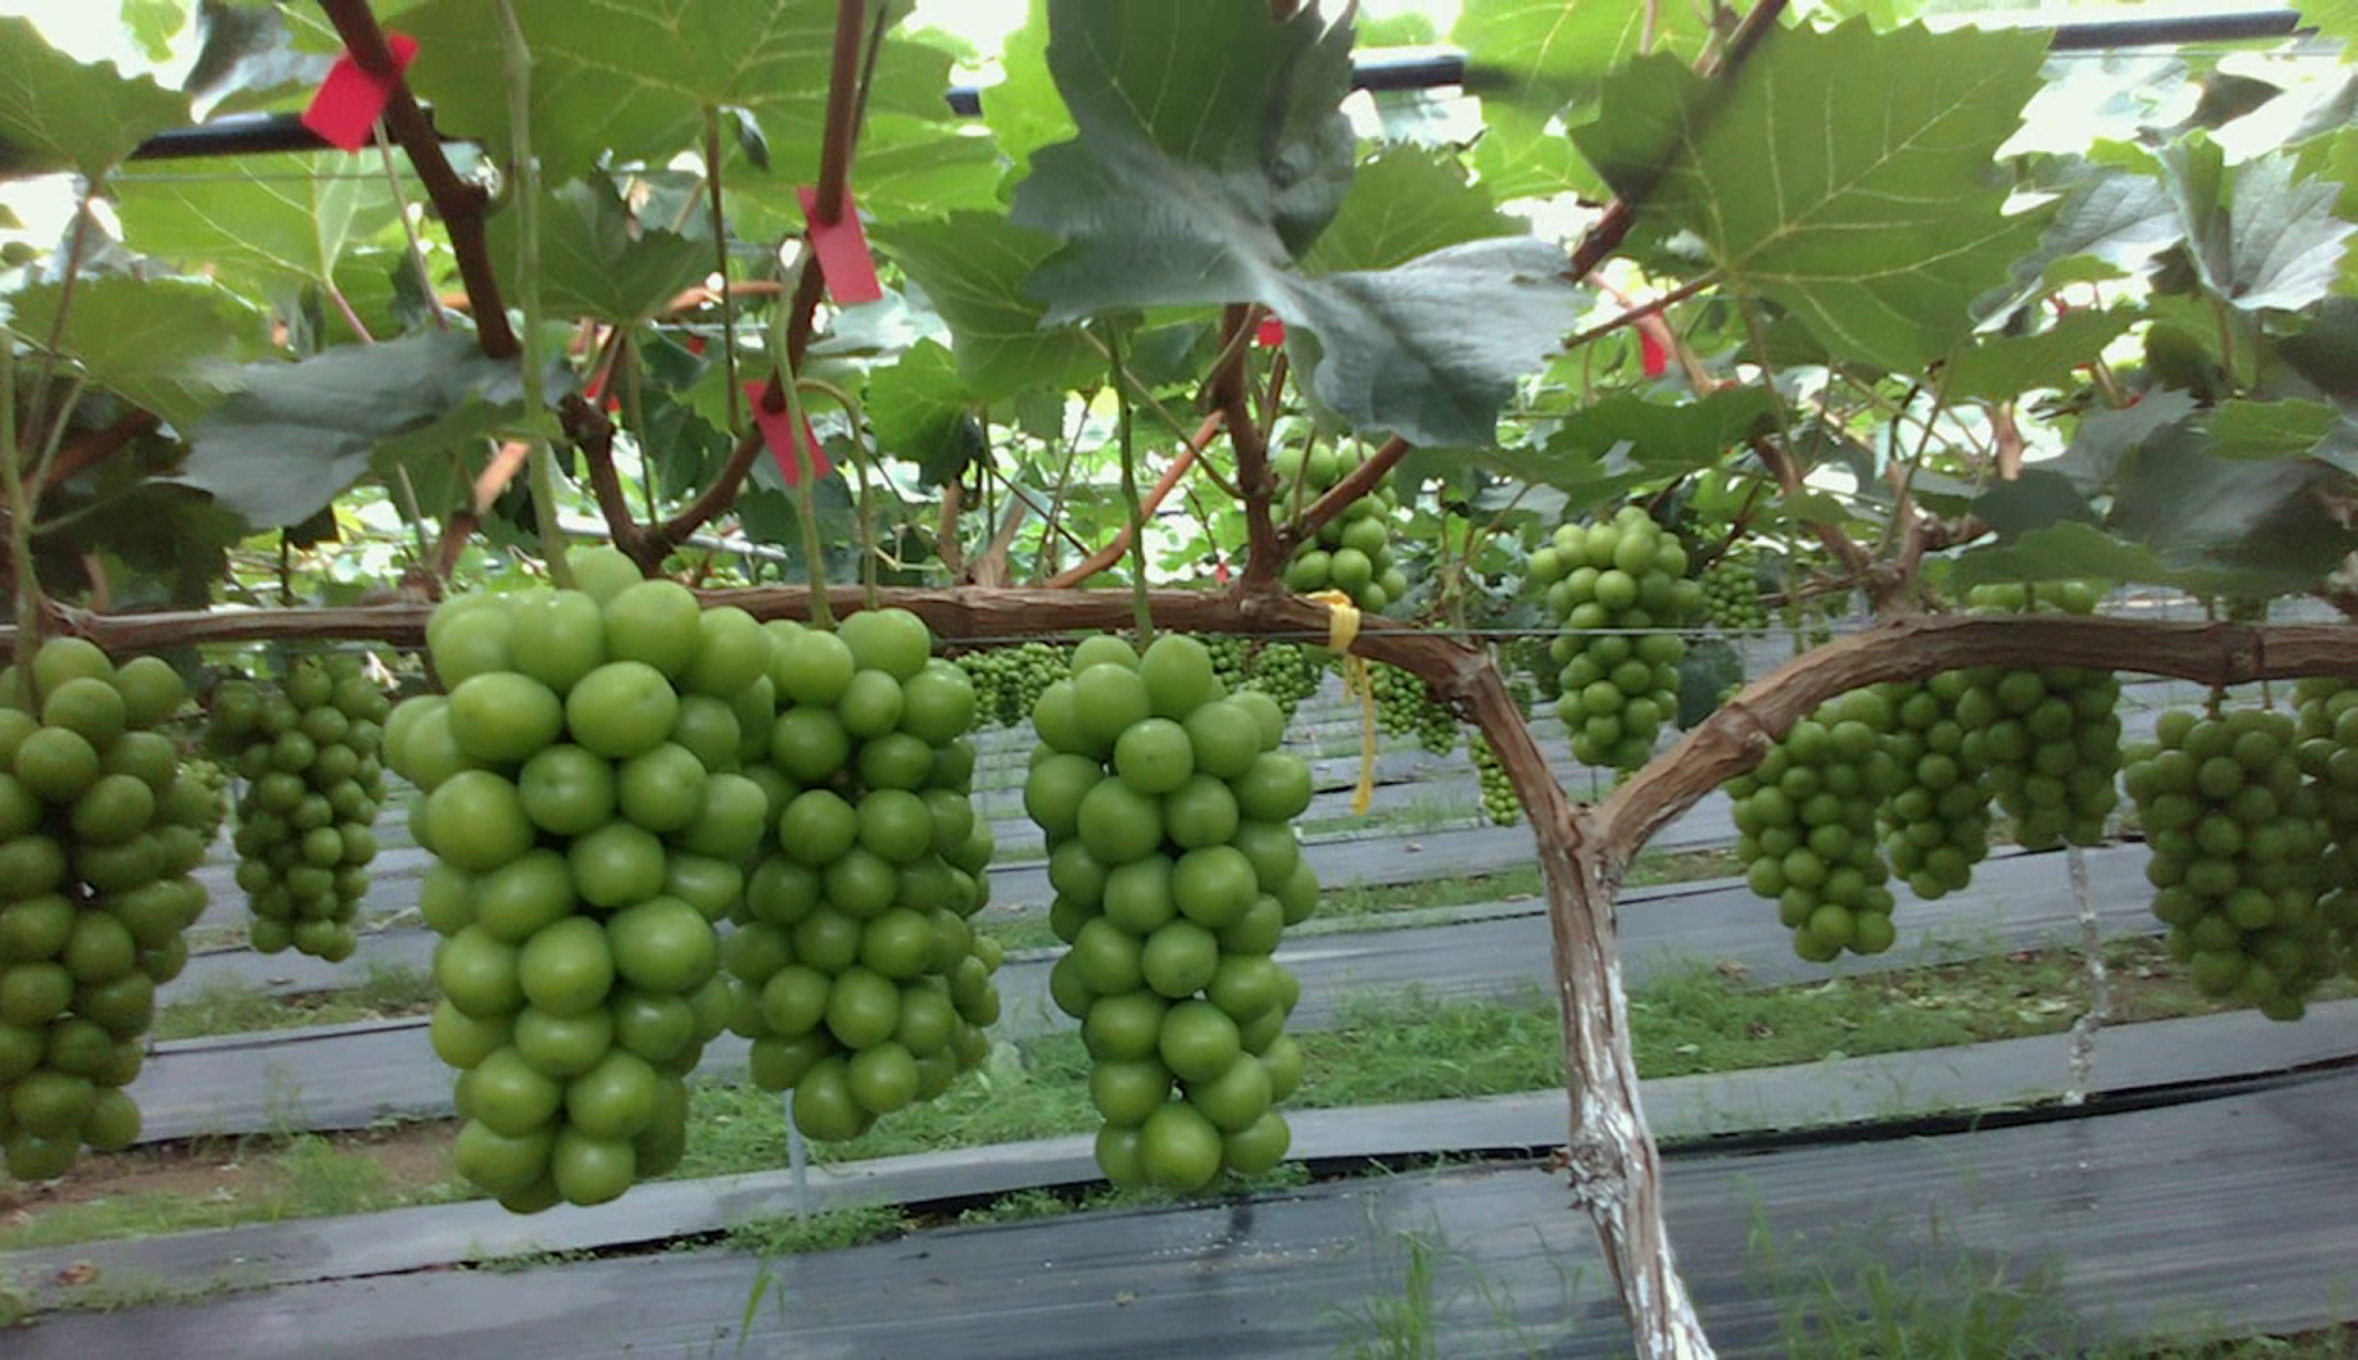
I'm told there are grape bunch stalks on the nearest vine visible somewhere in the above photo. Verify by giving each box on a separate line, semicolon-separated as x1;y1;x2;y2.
1103;319;1151;650
797;378;877;606
486;4;578;591
771;242;833;625
0;327;47;708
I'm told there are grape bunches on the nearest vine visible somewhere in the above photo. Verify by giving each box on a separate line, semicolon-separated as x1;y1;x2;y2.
2;637;208;1181
727;606;992;1143
382;582;771;1215
1026;637;1317;1199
